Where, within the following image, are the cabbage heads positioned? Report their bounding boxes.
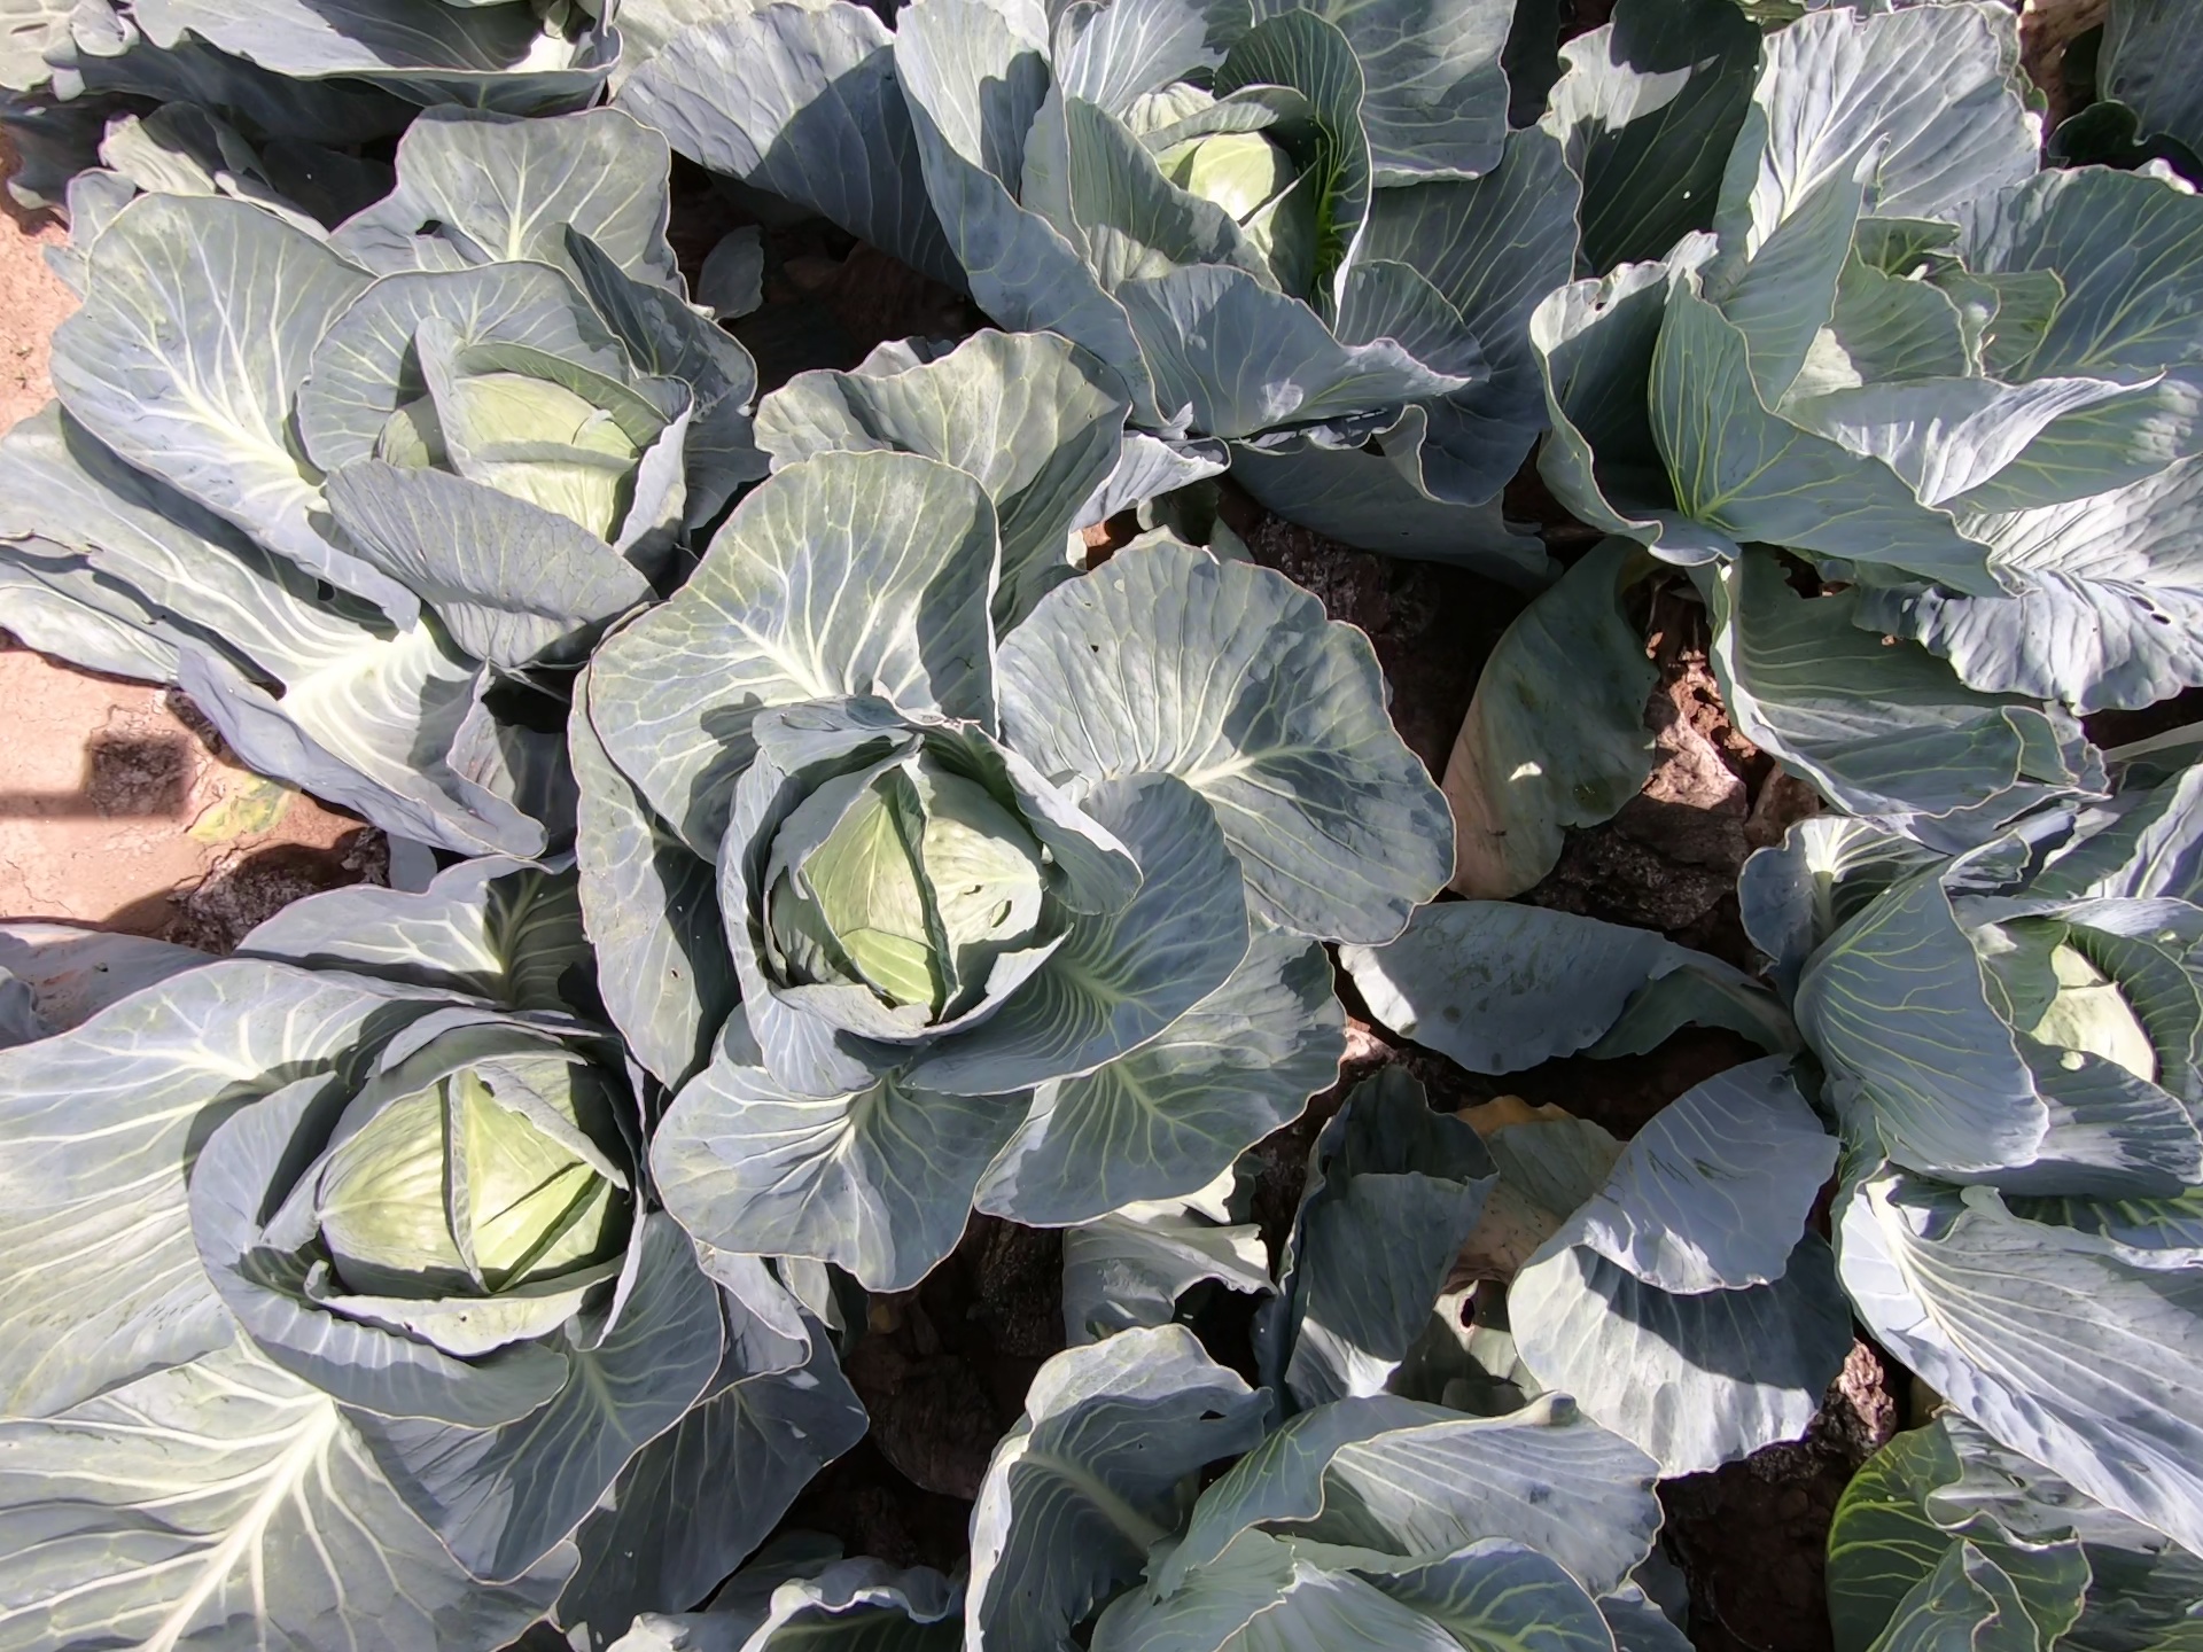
[1698,258,1945,514]
[768,761,1043,1039]
[318,1016,641,1341]
[1082,93,1306,320]
[1940,913,2165,1170]
[383,366,677,633]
